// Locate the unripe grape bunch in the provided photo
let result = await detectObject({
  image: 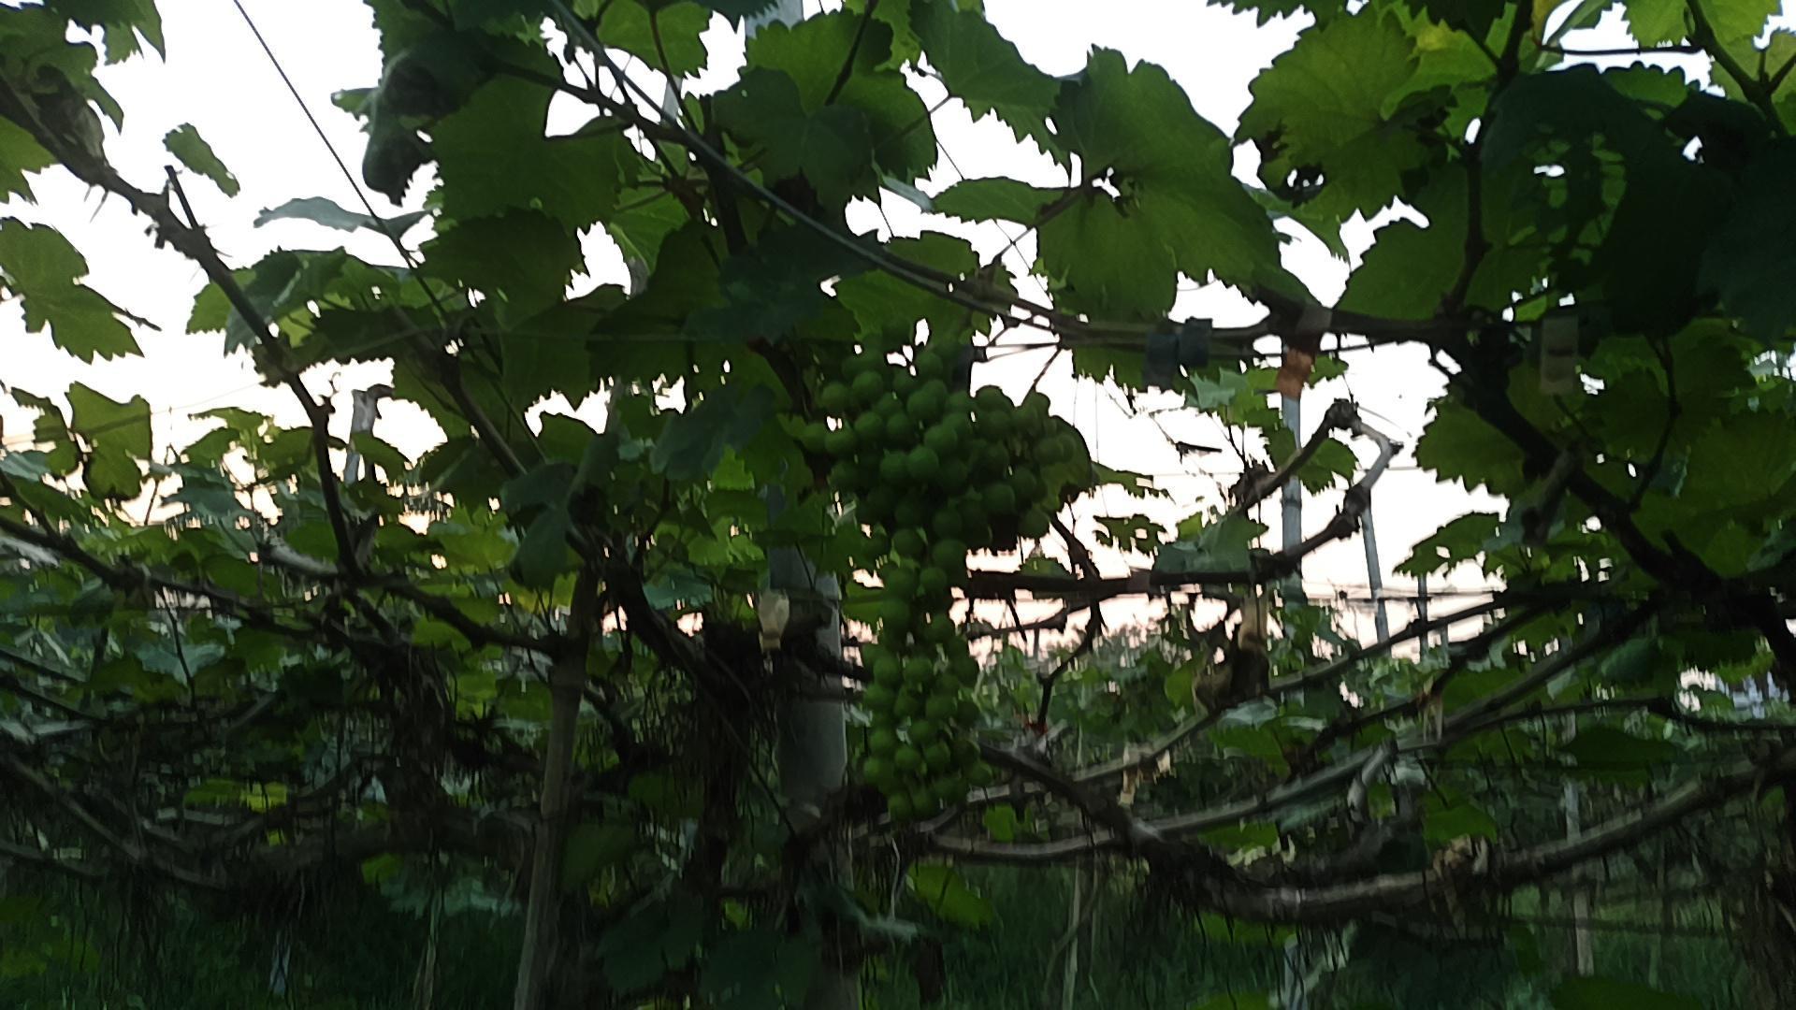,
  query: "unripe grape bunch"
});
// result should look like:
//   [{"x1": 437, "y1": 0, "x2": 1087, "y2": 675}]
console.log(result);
[{"x1": 819, "y1": 349, "x2": 1092, "y2": 817}]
